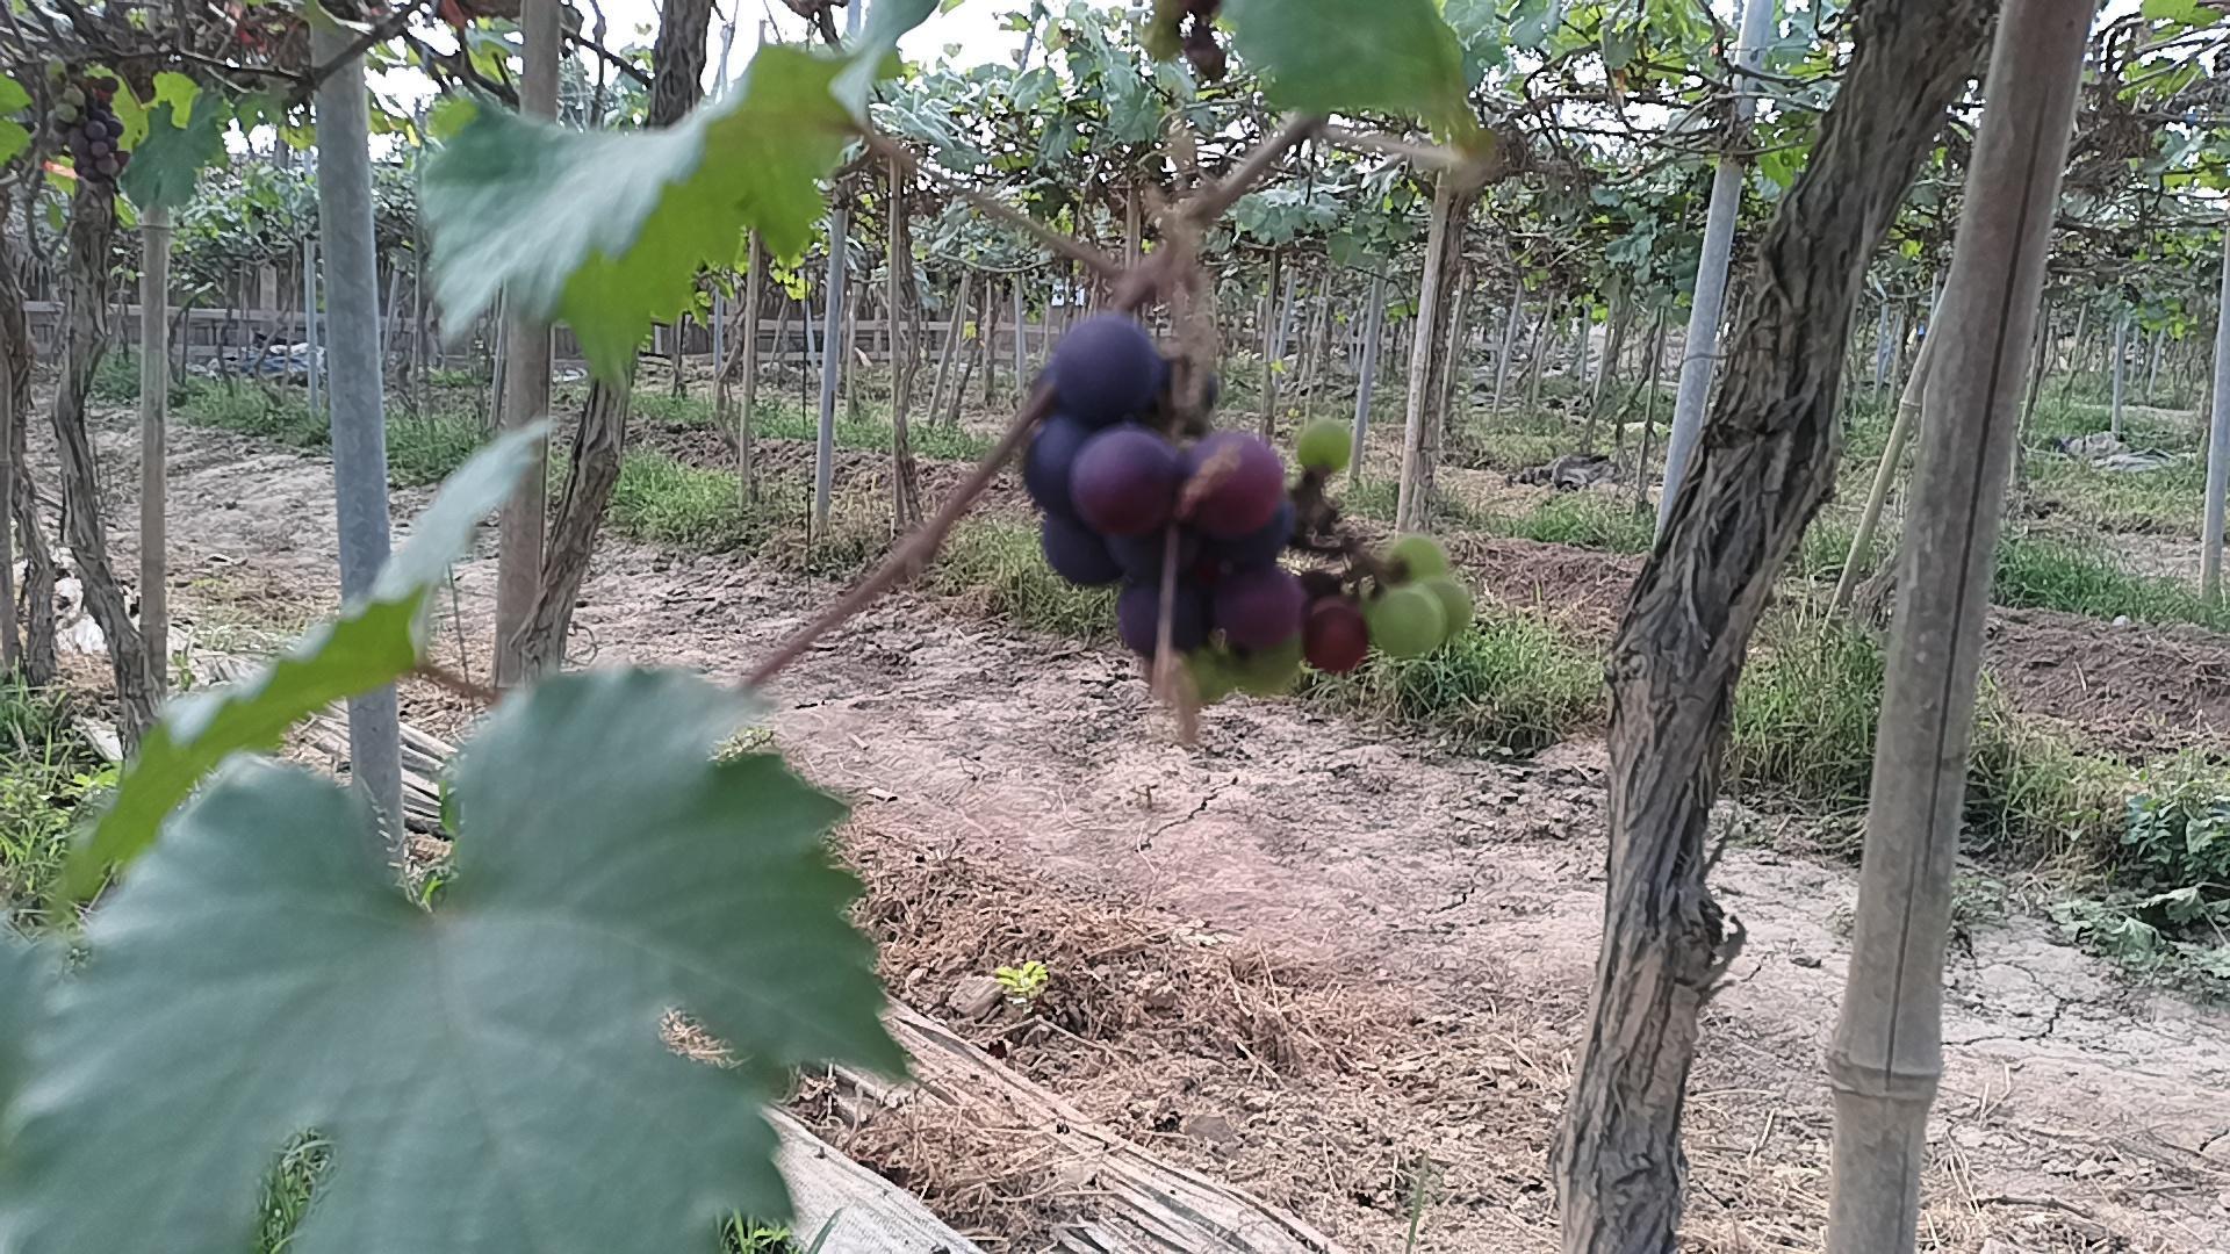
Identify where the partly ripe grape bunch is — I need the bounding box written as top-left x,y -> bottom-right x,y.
1024,315 -> 1468,698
